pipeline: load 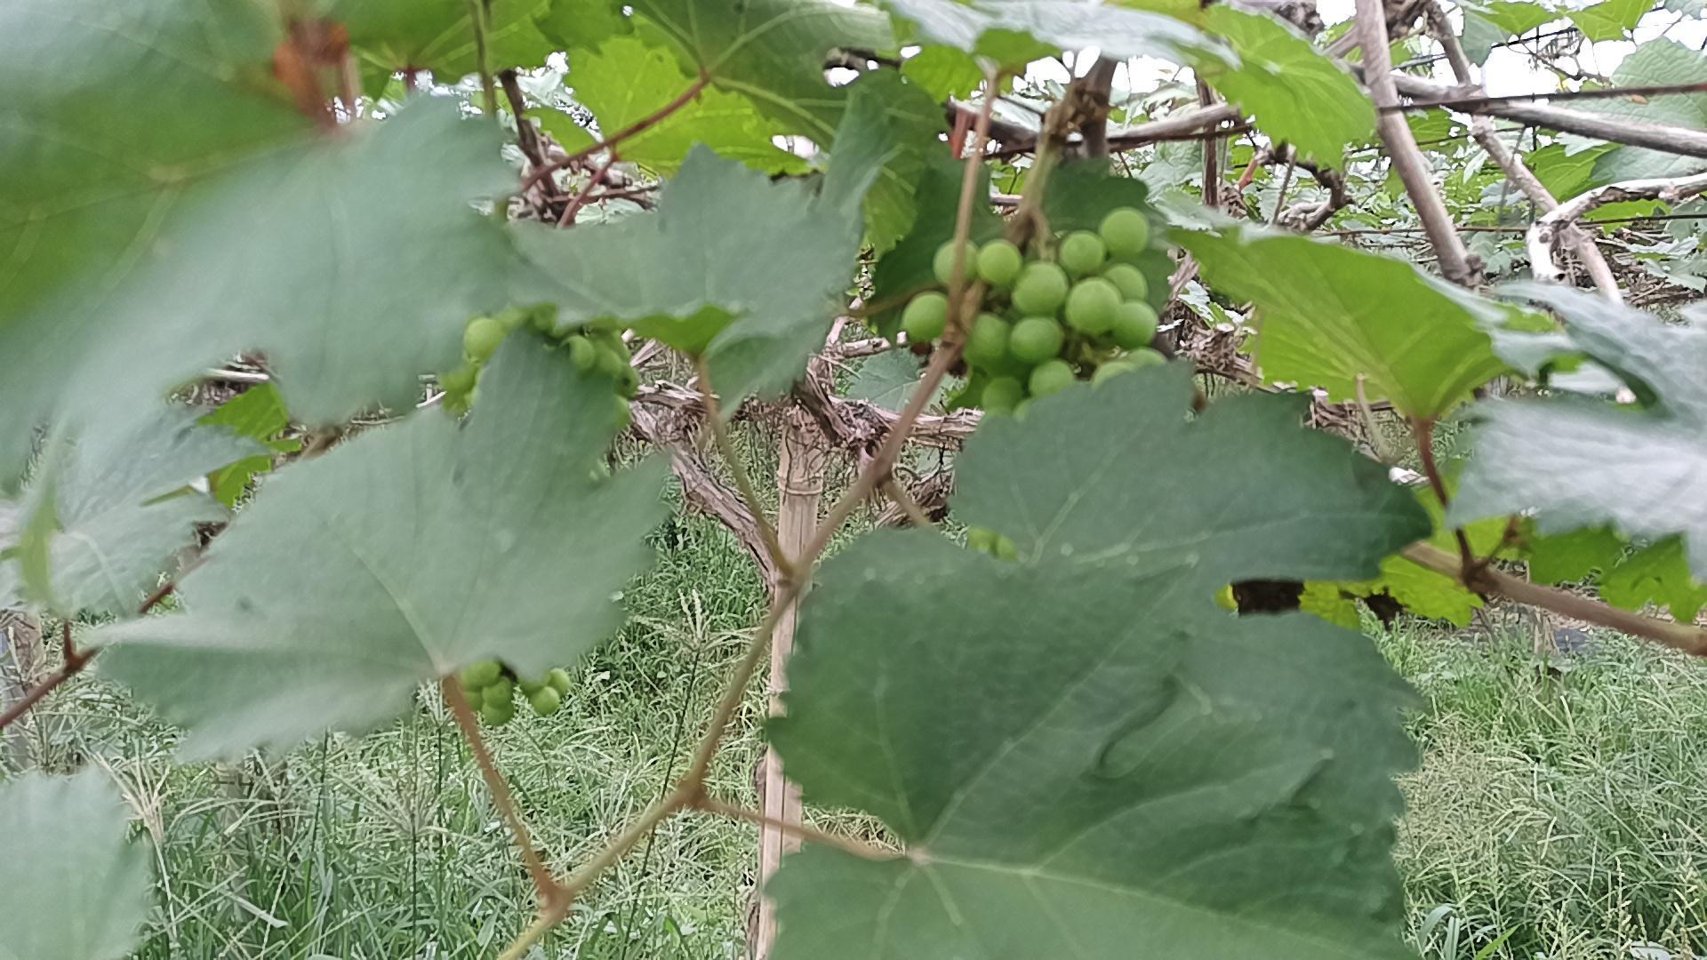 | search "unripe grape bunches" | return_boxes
[438,307,637,725]
[904,208,1162,412]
